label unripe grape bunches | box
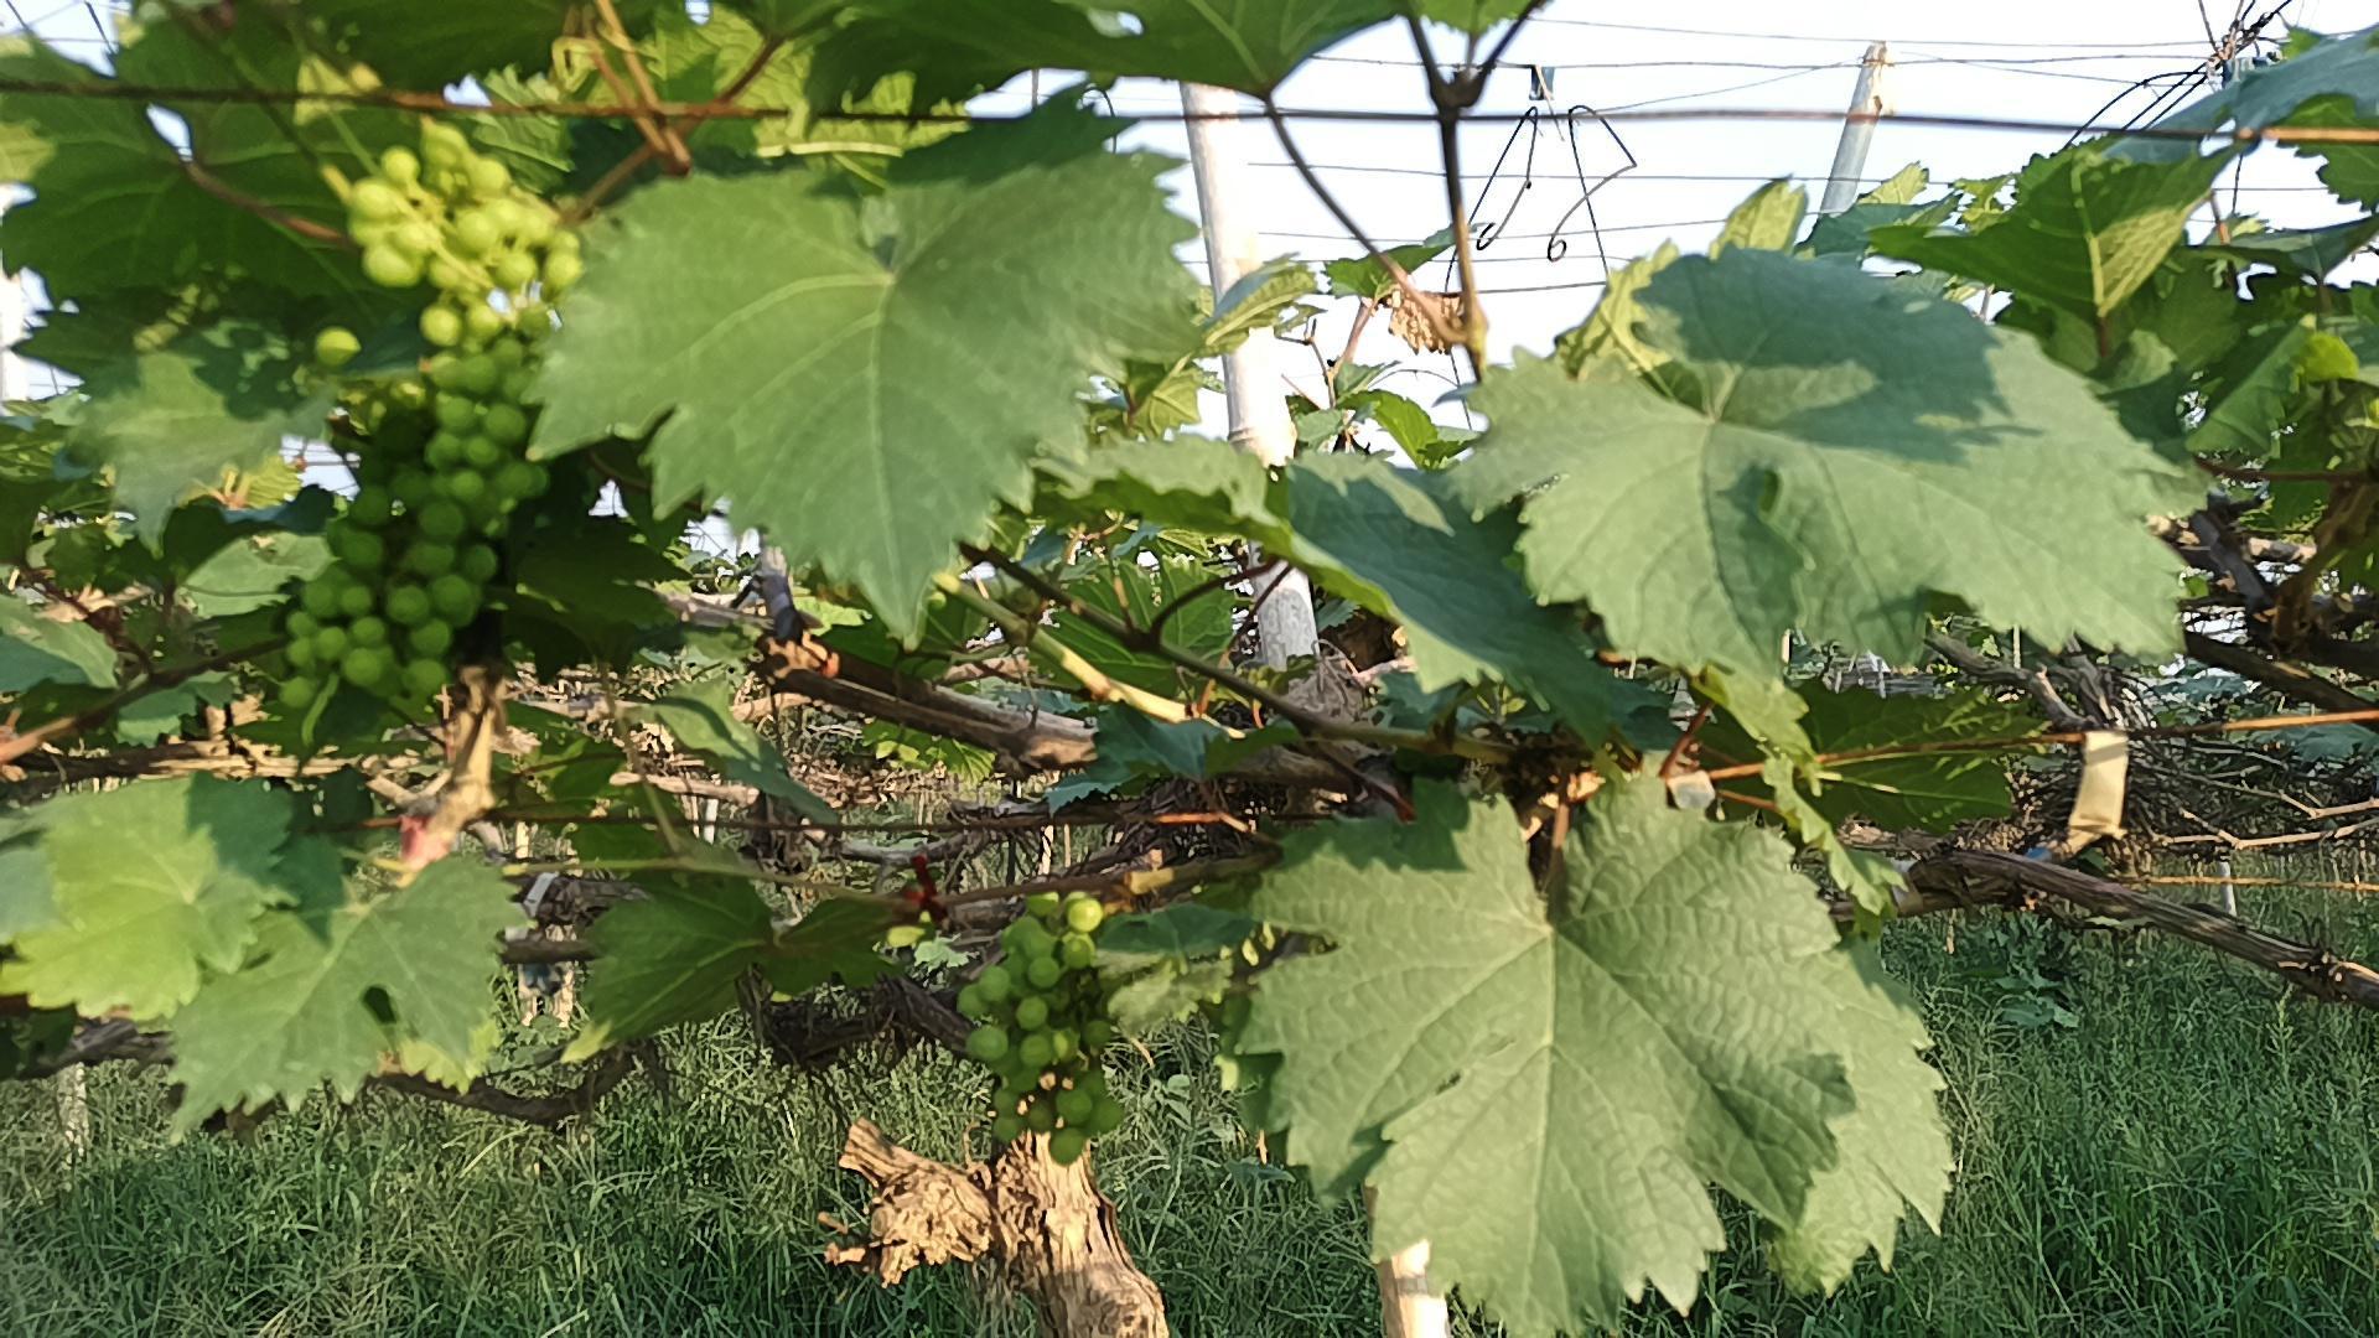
[280,126,580,737]
[960,893,1120,1165]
